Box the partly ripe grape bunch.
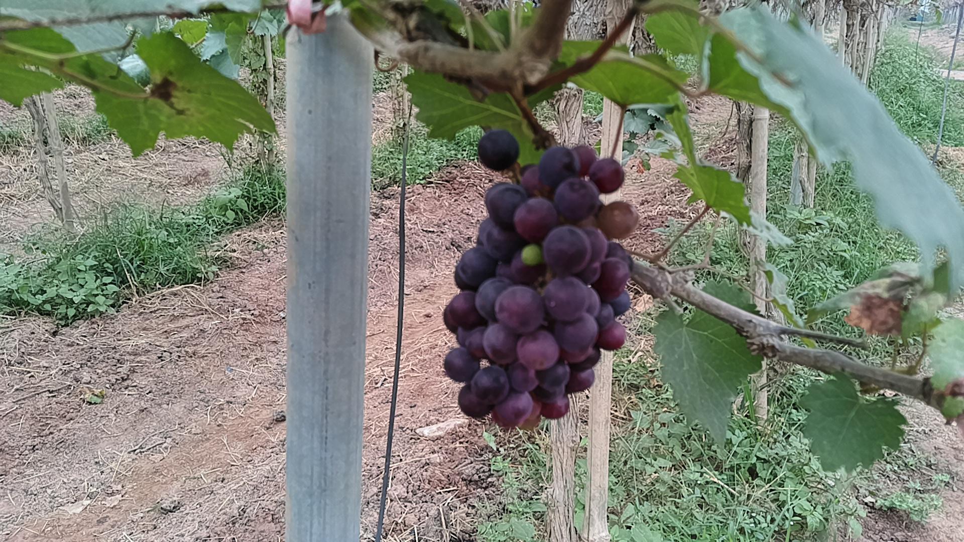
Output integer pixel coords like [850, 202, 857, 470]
[444, 130, 638, 429]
